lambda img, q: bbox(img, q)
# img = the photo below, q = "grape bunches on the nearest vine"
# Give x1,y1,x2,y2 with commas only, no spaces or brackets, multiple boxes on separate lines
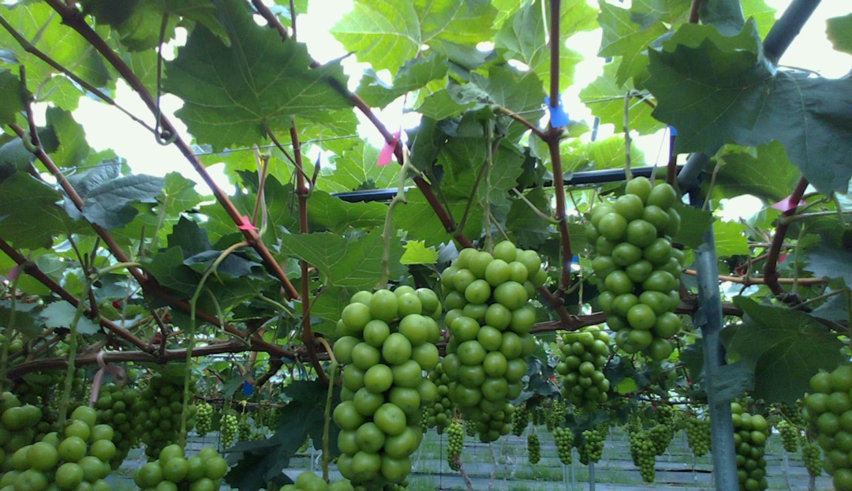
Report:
584,177,685,361
333,286,442,490
134,444,228,490
442,240,547,420
801,365,851,490
0,391,42,473
280,471,354,490
0,406,115,490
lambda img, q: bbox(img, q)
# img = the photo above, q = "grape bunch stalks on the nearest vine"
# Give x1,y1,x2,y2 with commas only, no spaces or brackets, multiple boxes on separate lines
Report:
57,263,156,443
315,338,337,486
377,147,410,291
480,119,496,254
180,241,249,456
623,89,656,183
0,261,35,417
